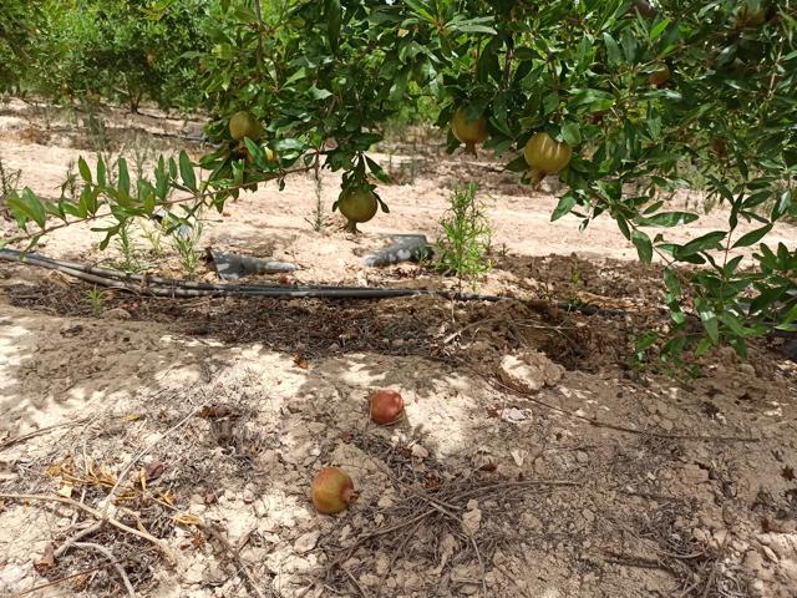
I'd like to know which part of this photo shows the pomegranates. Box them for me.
[264,147,276,163]
[339,188,377,235]
[523,131,573,187]
[451,107,489,159]
[228,110,263,152]
[648,69,670,85]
